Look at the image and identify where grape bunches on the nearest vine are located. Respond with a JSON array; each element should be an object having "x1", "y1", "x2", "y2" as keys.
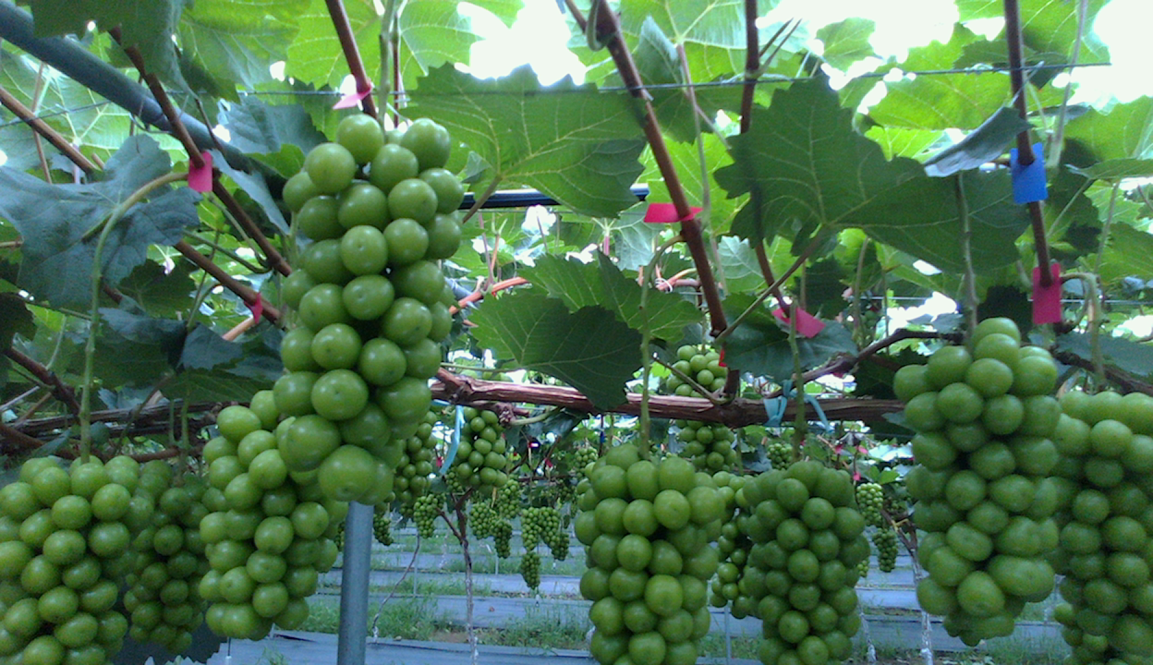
[
  {"x1": 272, "y1": 114, "x2": 466, "y2": 506},
  {"x1": 574, "y1": 442, "x2": 726, "y2": 664},
  {"x1": 0, "y1": 455, "x2": 153, "y2": 664},
  {"x1": 199, "y1": 390, "x2": 350, "y2": 641},
  {"x1": 894, "y1": 318, "x2": 1062, "y2": 647},
  {"x1": 124, "y1": 460, "x2": 212, "y2": 653},
  {"x1": 742, "y1": 459, "x2": 865, "y2": 664},
  {"x1": 1043, "y1": 390, "x2": 1152, "y2": 655}
]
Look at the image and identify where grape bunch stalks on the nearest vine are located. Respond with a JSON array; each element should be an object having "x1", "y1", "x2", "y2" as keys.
[
  {"x1": 789, "y1": 299, "x2": 806, "y2": 465},
  {"x1": 79, "y1": 172, "x2": 187, "y2": 465},
  {"x1": 954, "y1": 175, "x2": 977, "y2": 358},
  {"x1": 172, "y1": 398, "x2": 190, "y2": 485},
  {"x1": 1061, "y1": 272, "x2": 1109, "y2": 393},
  {"x1": 638, "y1": 234, "x2": 684, "y2": 462},
  {"x1": 378, "y1": 1, "x2": 394, "y2": 144}
]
